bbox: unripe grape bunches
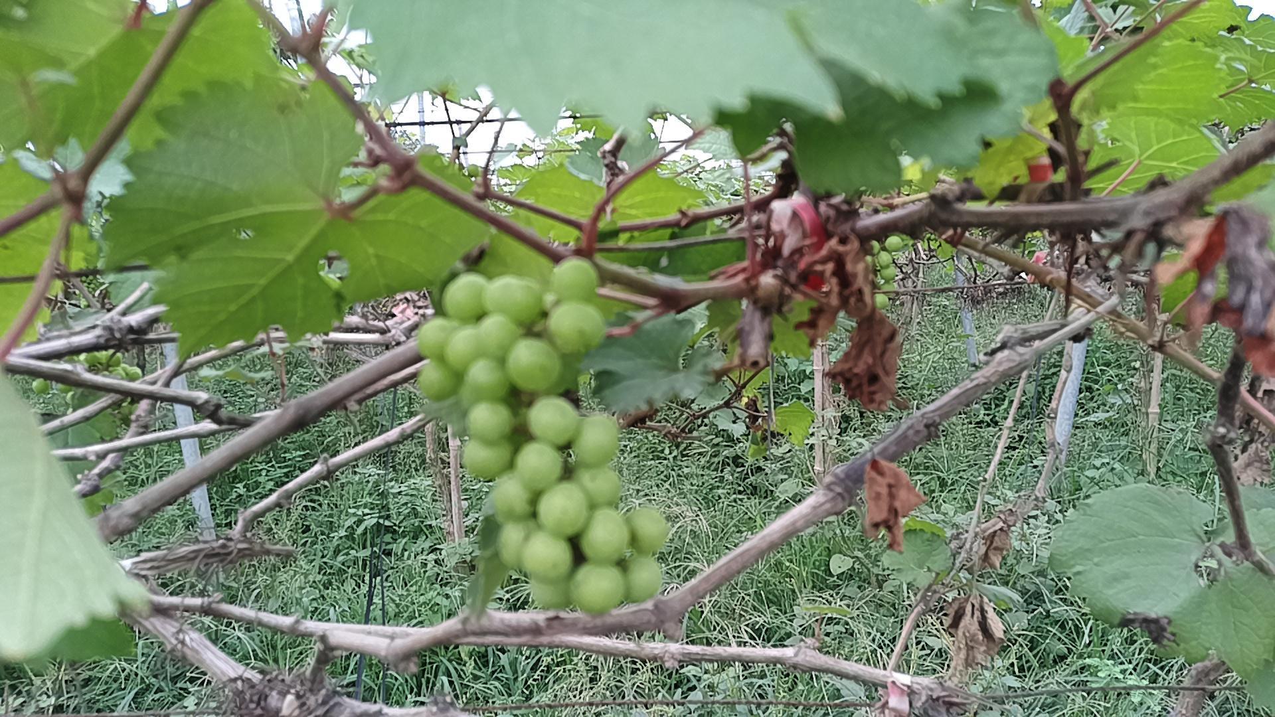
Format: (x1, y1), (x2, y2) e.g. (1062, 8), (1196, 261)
(864, 235), (903, 310)
(416, 256), (665, 617)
